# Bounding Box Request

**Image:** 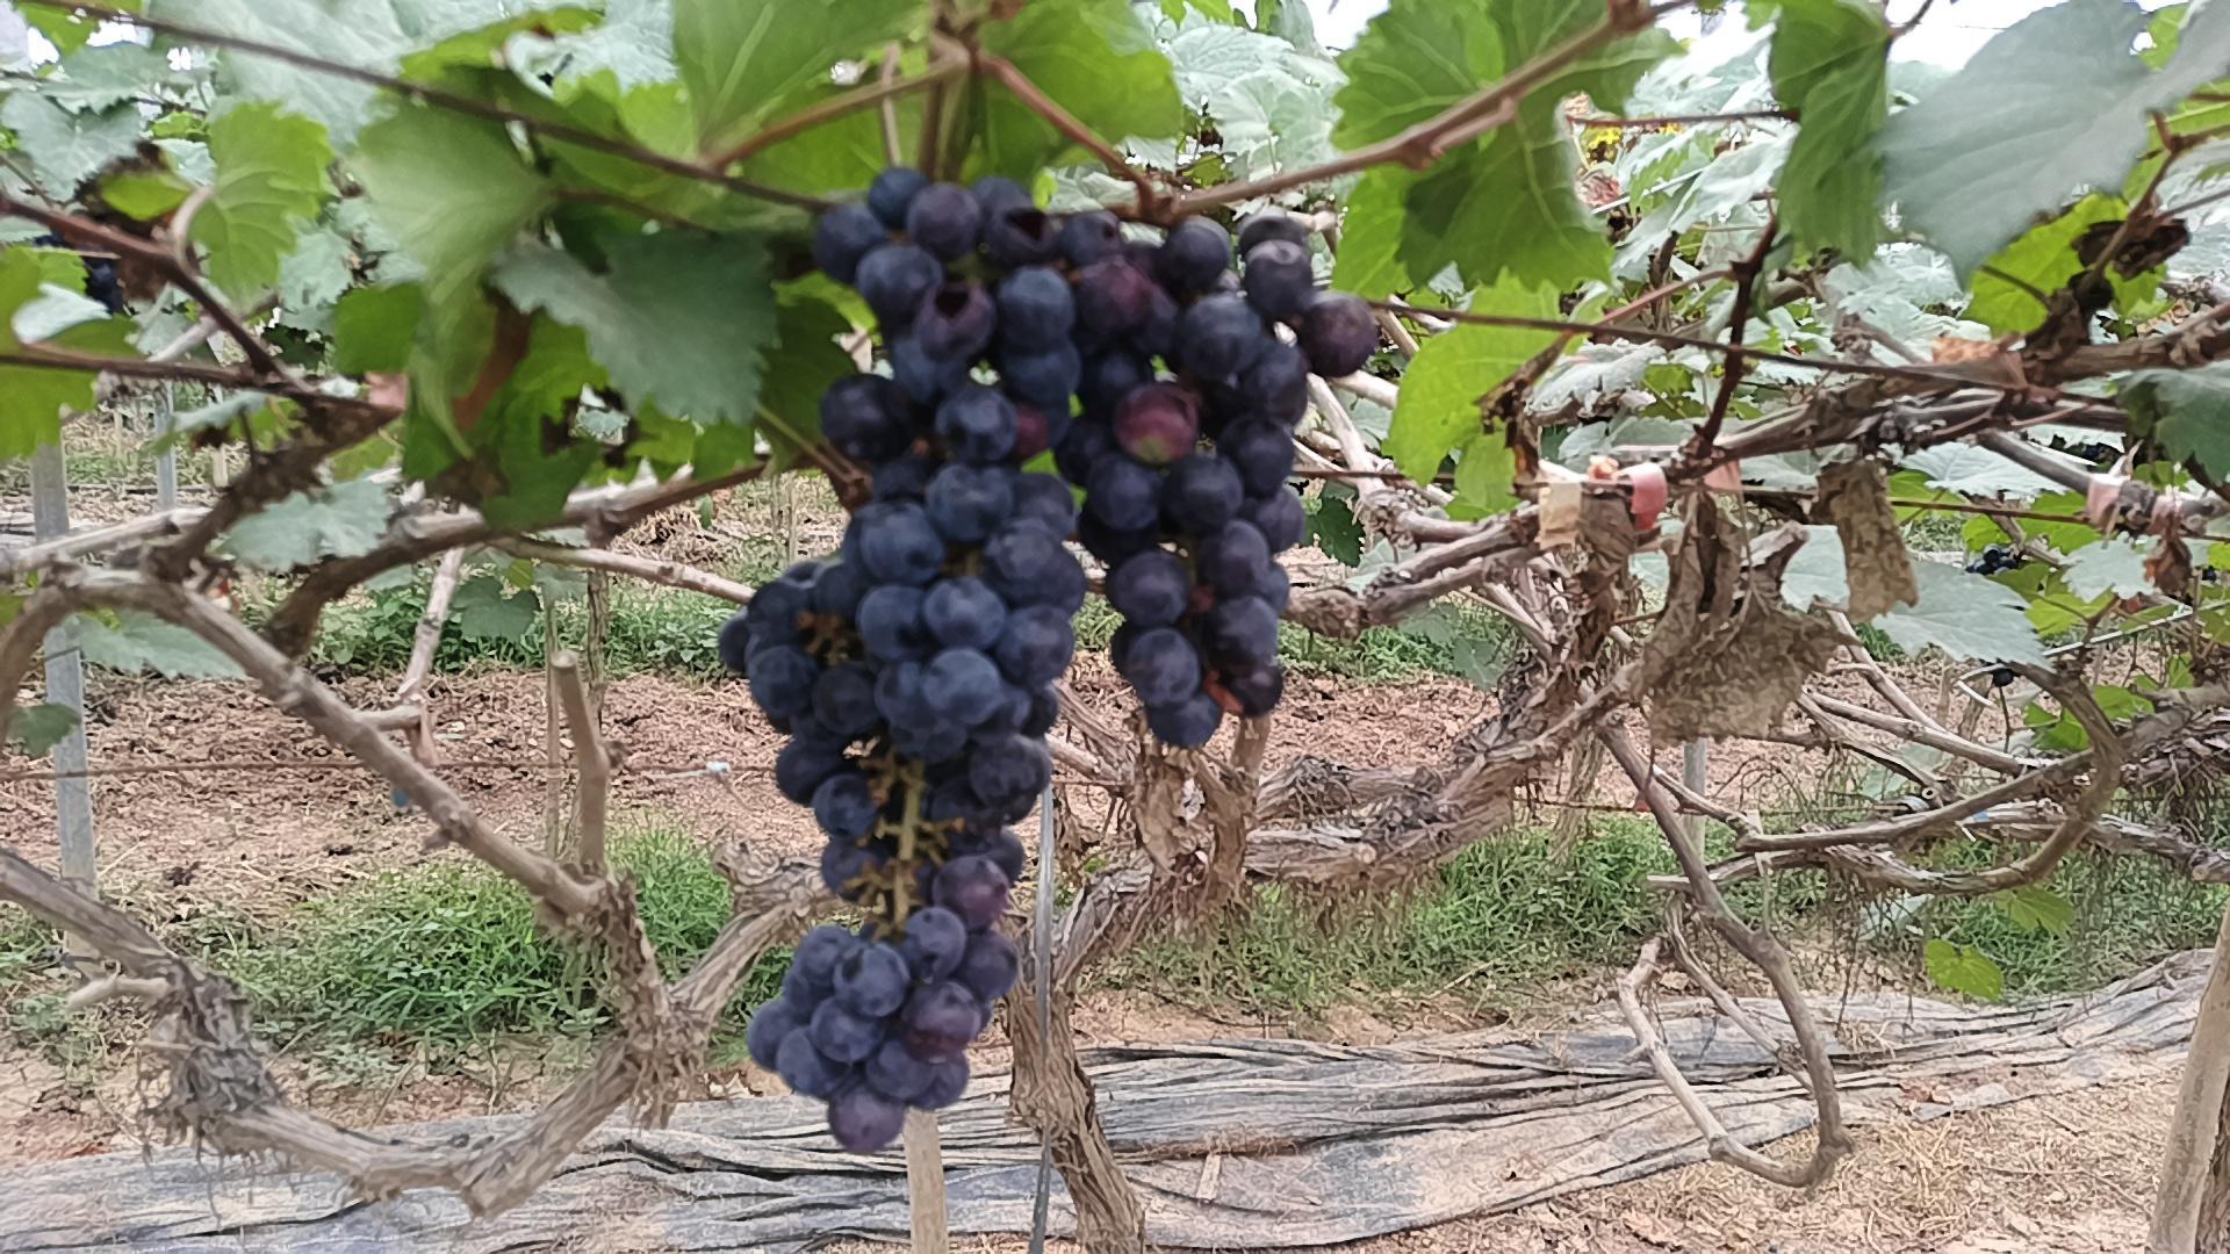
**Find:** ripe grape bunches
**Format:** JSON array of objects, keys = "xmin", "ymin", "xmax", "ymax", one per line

[
  {"xmin": 1052, "ymin": 214, "xmax": 1375, "ymax": 747},
  {"xmin": 720, "ymin": 168, "xmax": 1086, "ymax": 1153}
]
